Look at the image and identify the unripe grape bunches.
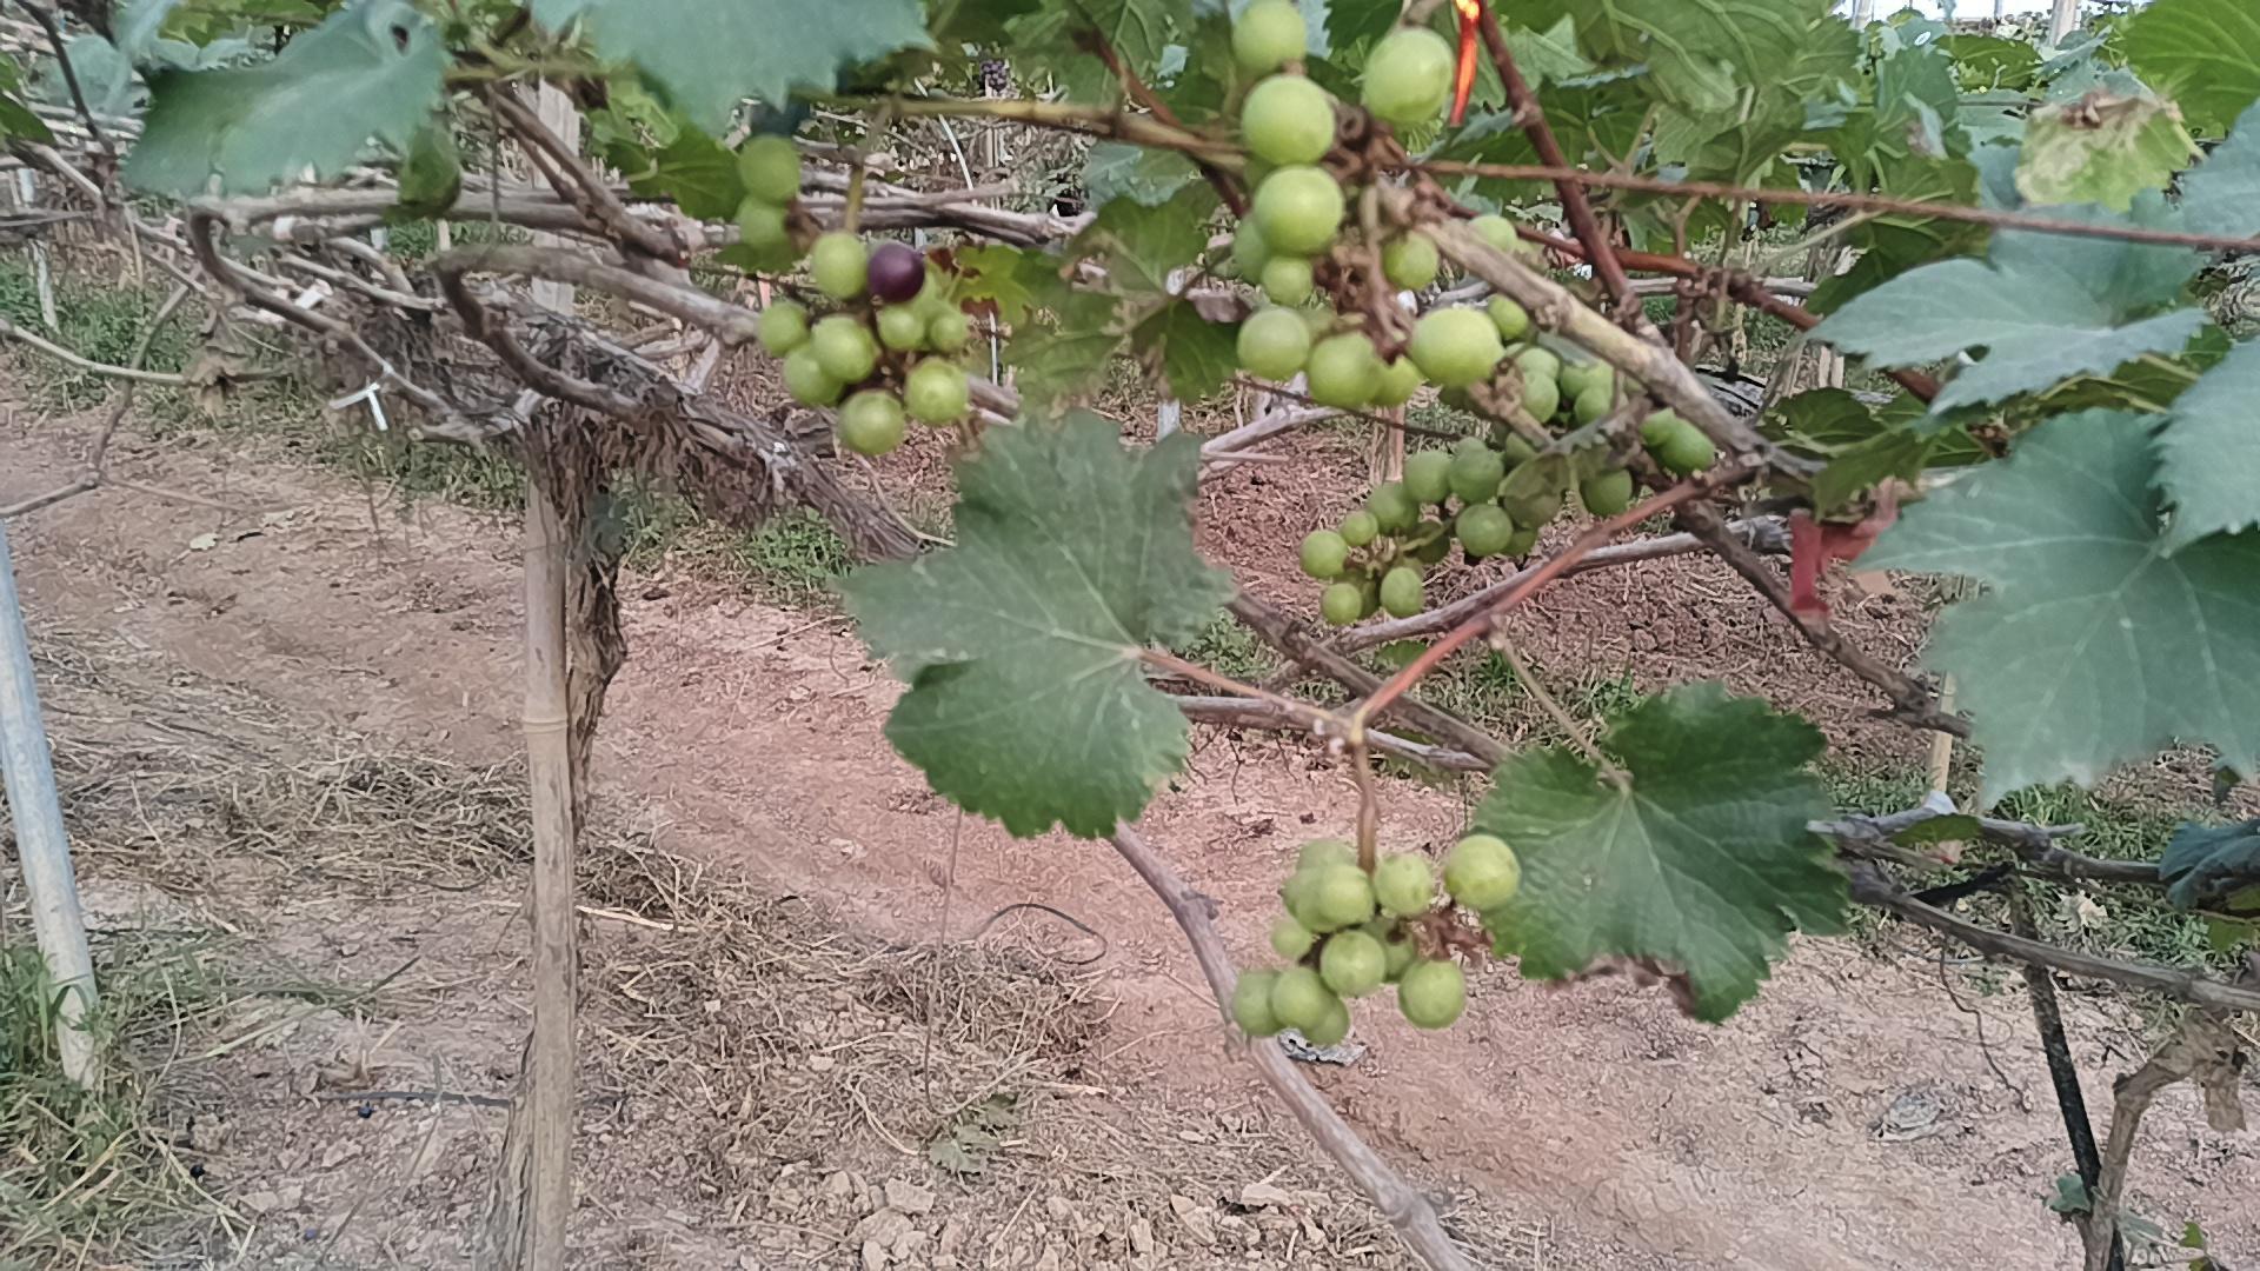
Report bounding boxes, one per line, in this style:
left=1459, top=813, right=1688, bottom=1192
left=1231, top=833, right=1520, bottom=1047
left=738, top=133, right=973, bottom=455
left=1296, top=215, right=1720, bottom=626
left=1232, top=0, right=1503, bottom=410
